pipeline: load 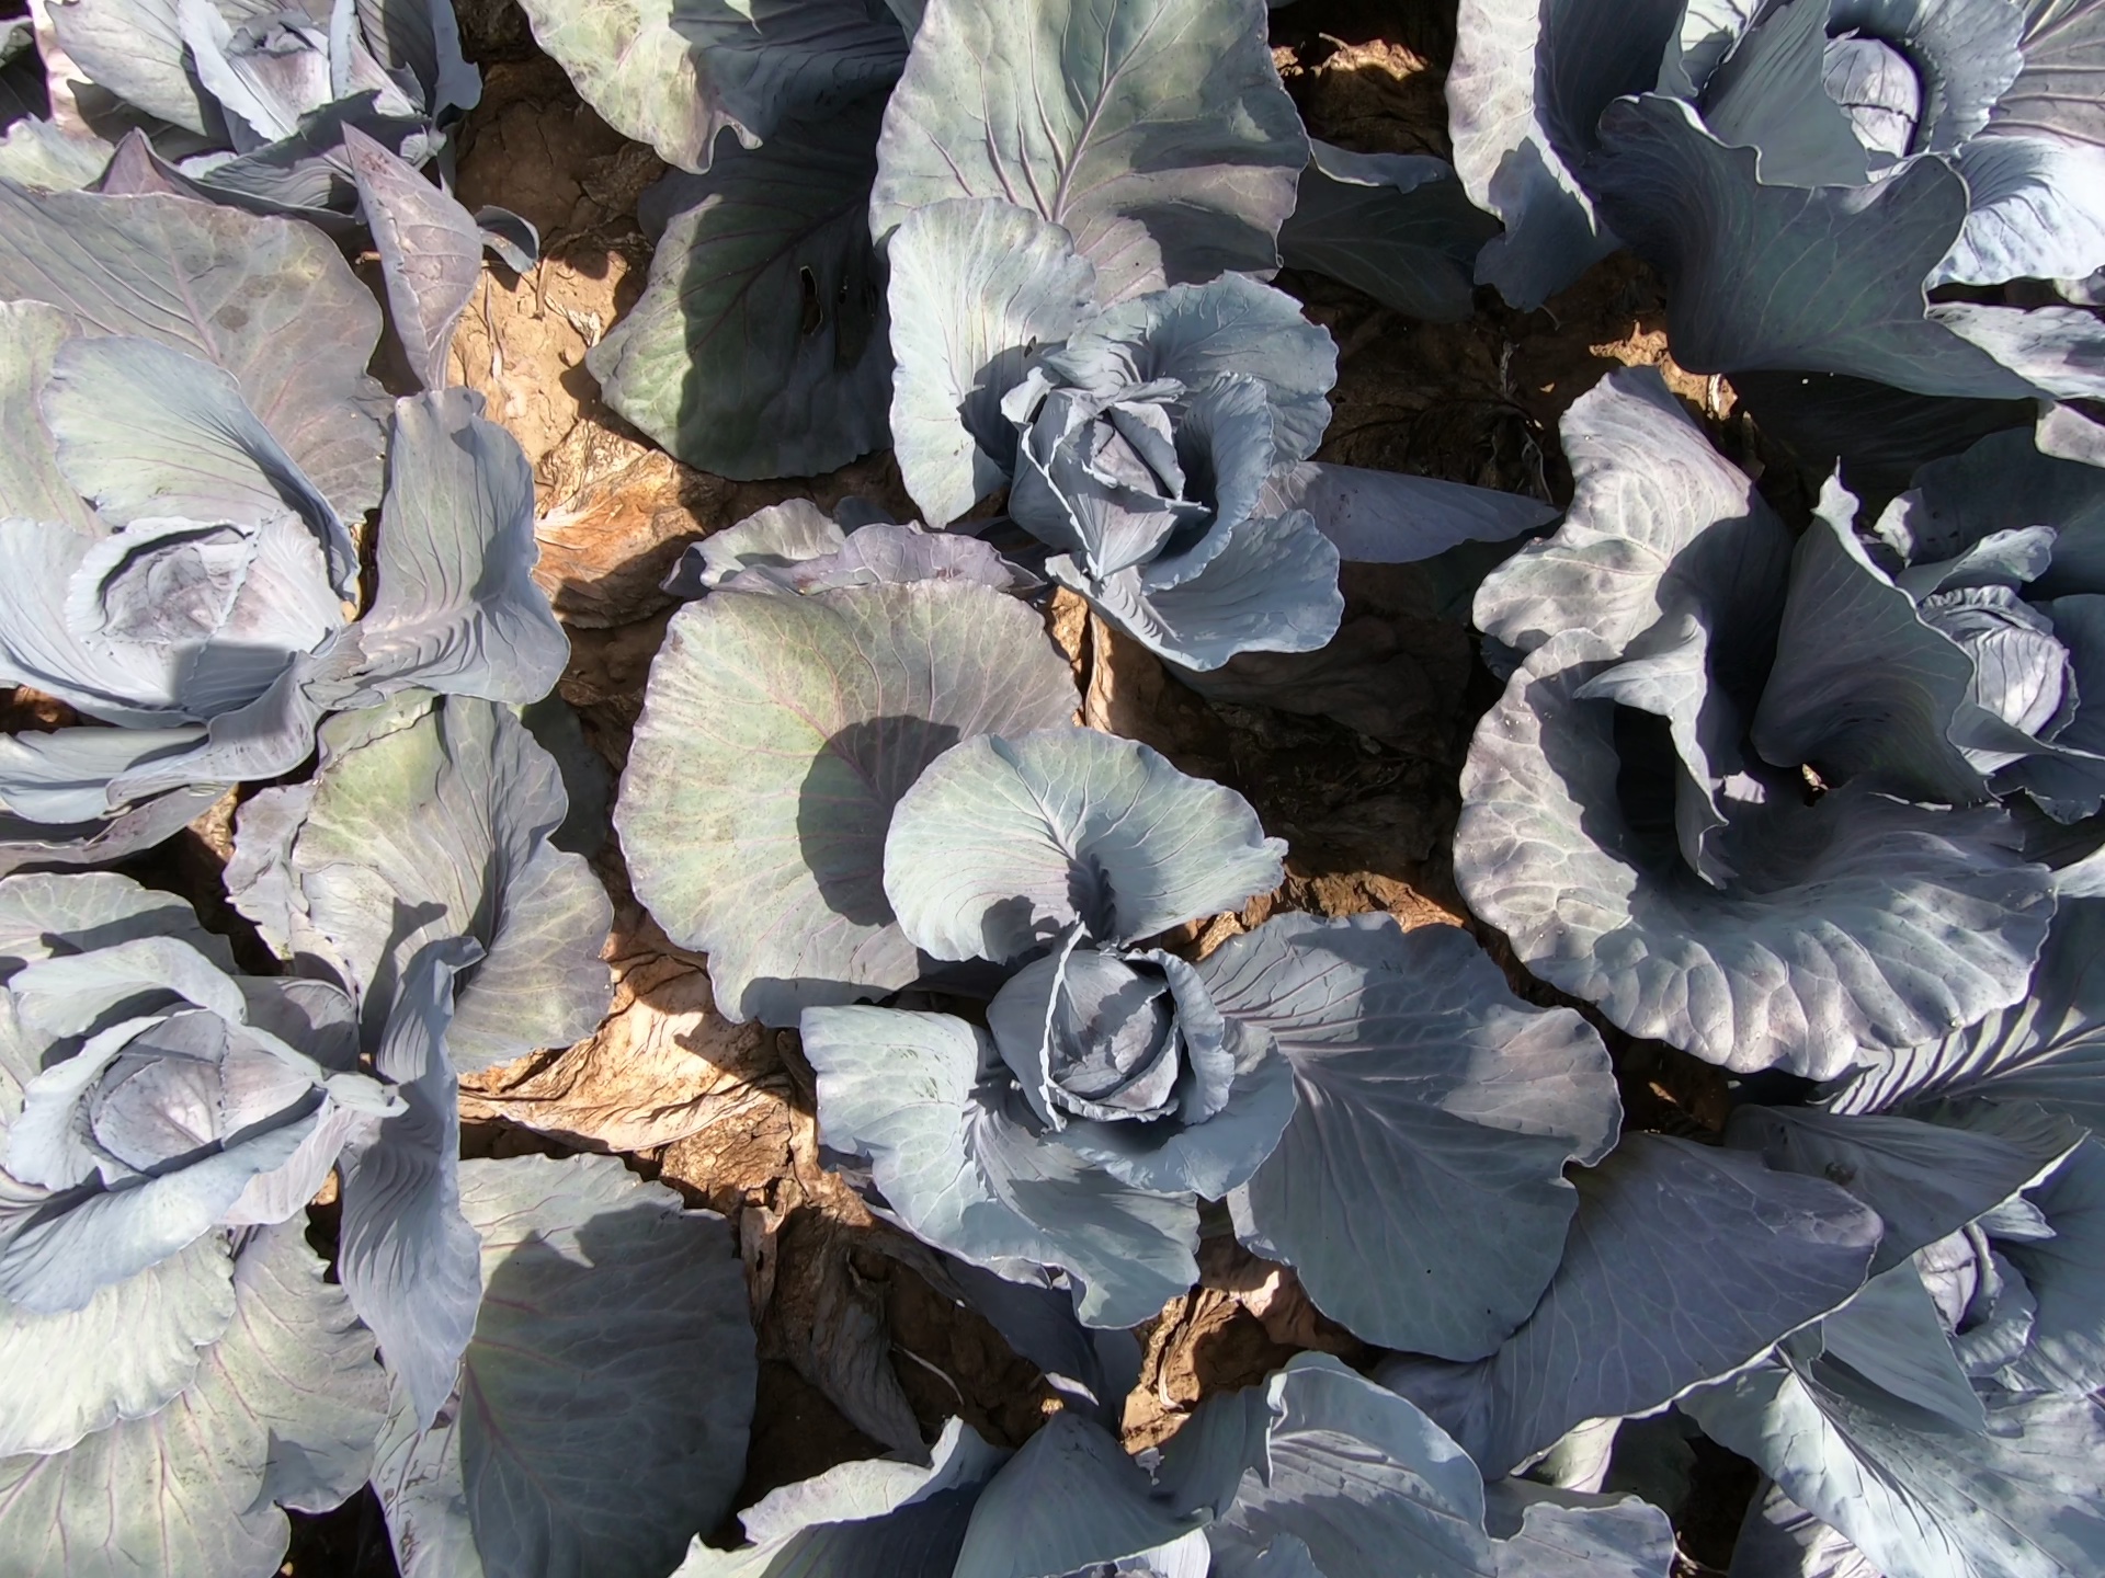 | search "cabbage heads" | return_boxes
[1886,599,2061,765]
[105,538,322,700]
[226,25,392,171]
[88,988,345,1200]
[1851,1194,1990,1335]
[1038,388,1181,559]
[1767,33,1925,190]
[953,1453,1208,1576]
[999,950,1177,1118]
